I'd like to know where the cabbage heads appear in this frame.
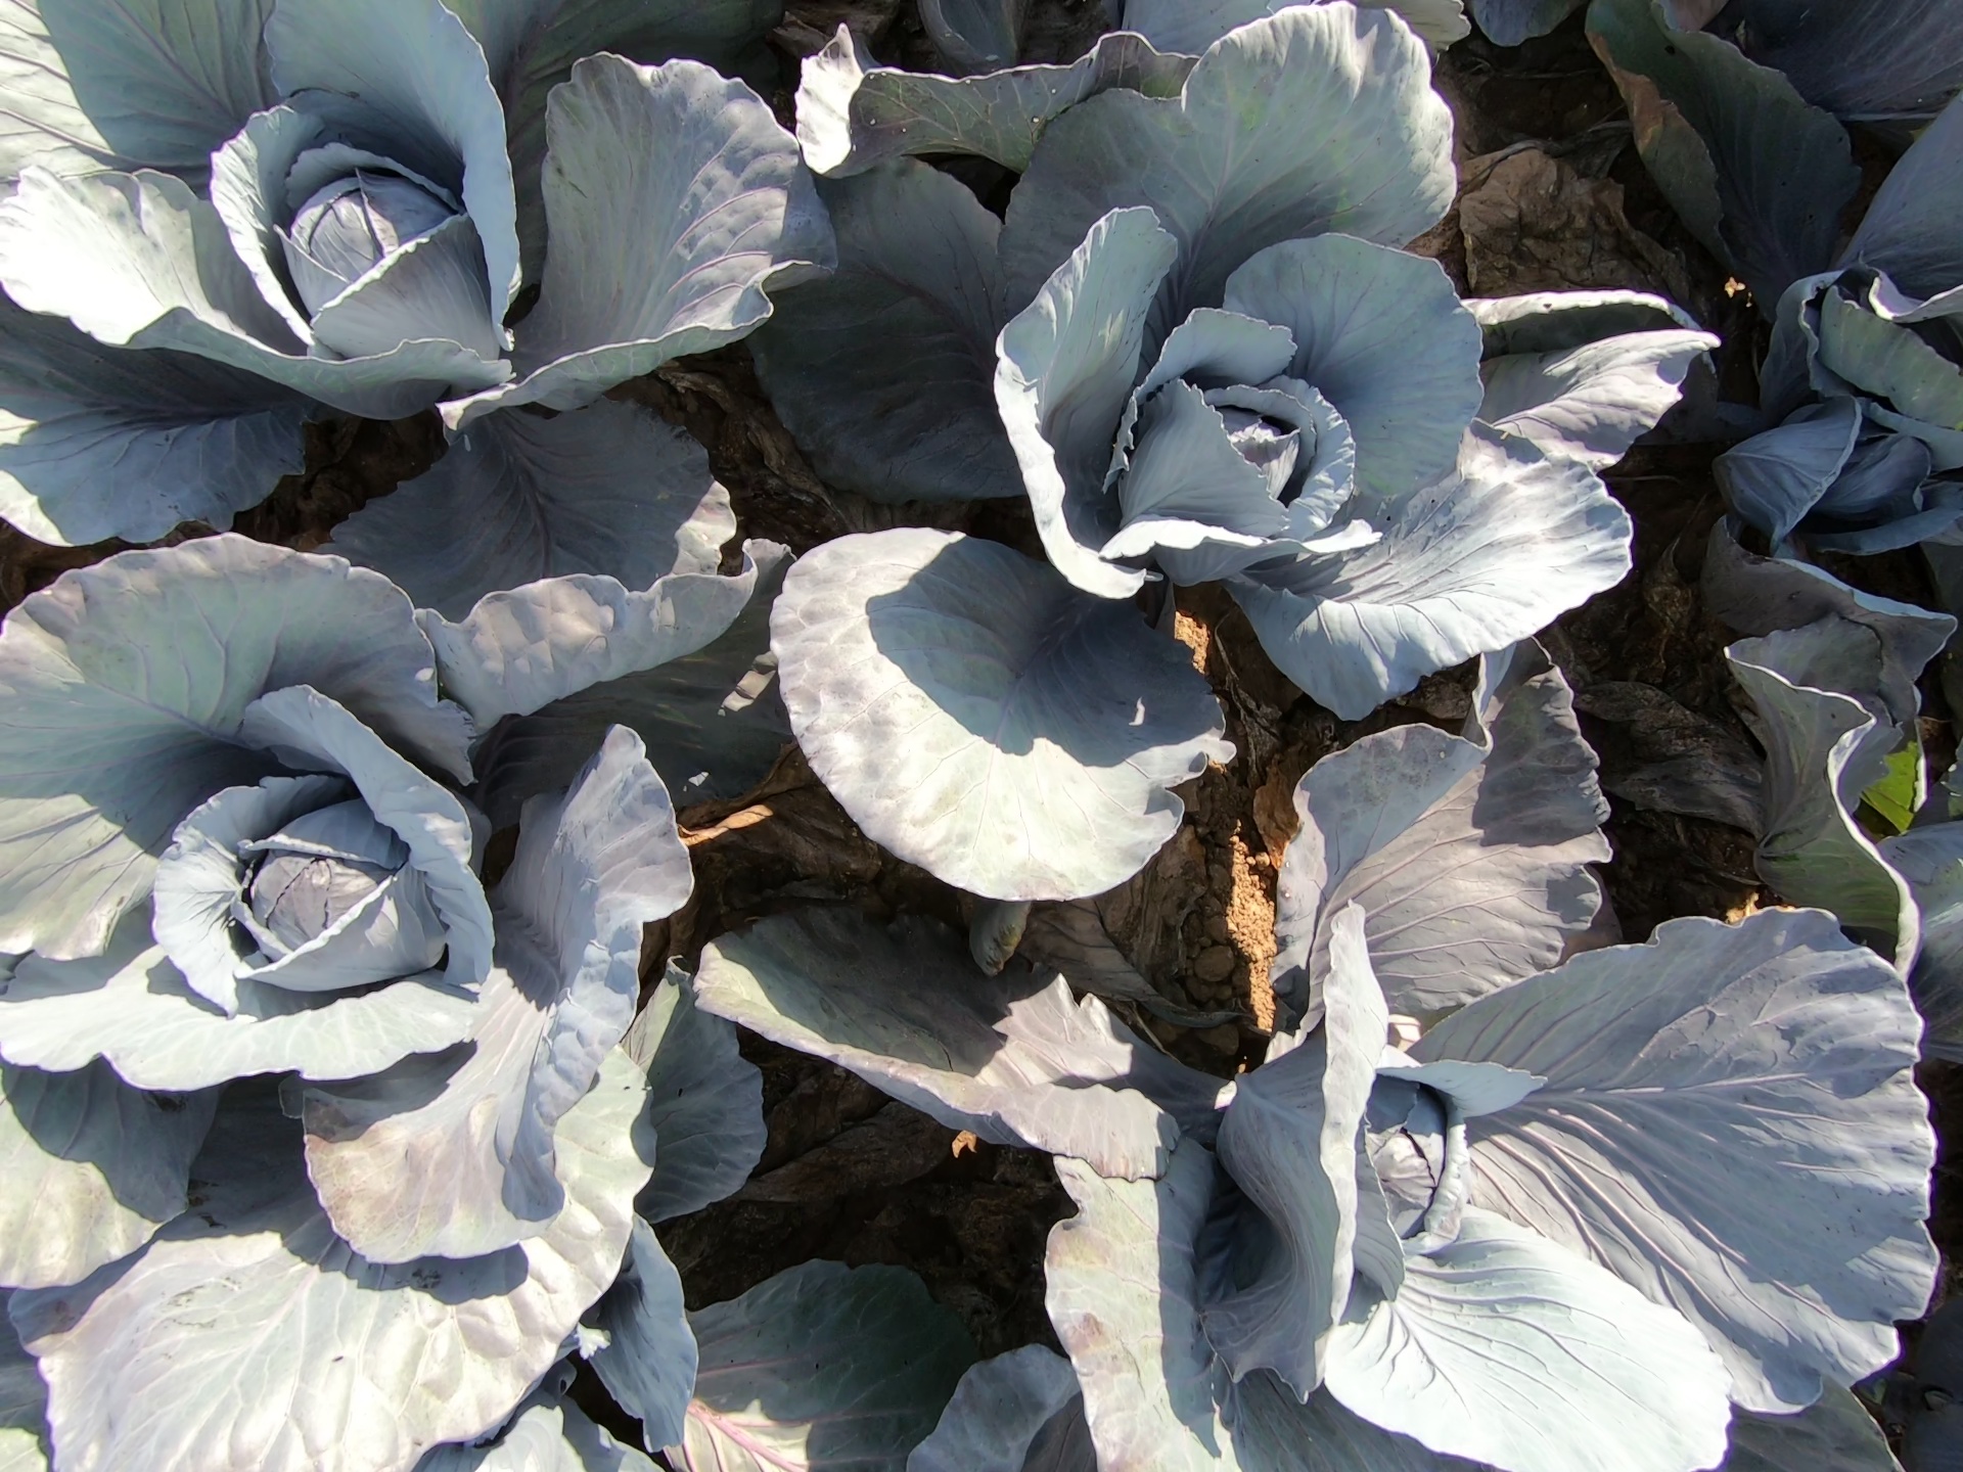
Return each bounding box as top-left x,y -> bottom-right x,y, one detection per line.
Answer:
1137,403 -> 1311,521
298,180 -> 483,358
1257,1060 -> 1460,1247
250,814 -> 449,975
